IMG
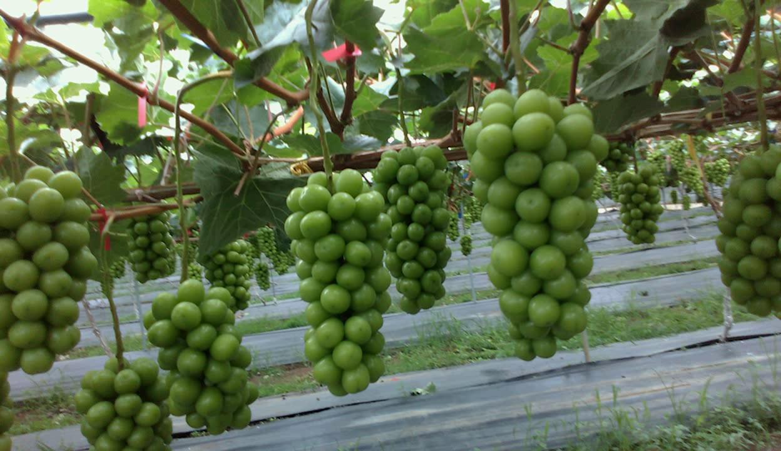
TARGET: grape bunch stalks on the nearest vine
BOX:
[305,1,334,192]
[755,1,770,150]
[509,1,526,96]
[5,31,21,182]
[173,71,229,281]
[100,219,128,370]
[395,69,411,147]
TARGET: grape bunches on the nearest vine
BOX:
[715,144,780,316]
[285,168,392,397]
[374,147,451,315]
[1,166,97,374]
[143,279,258,435]
[73,357,173,450]
[464,88,610,341]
